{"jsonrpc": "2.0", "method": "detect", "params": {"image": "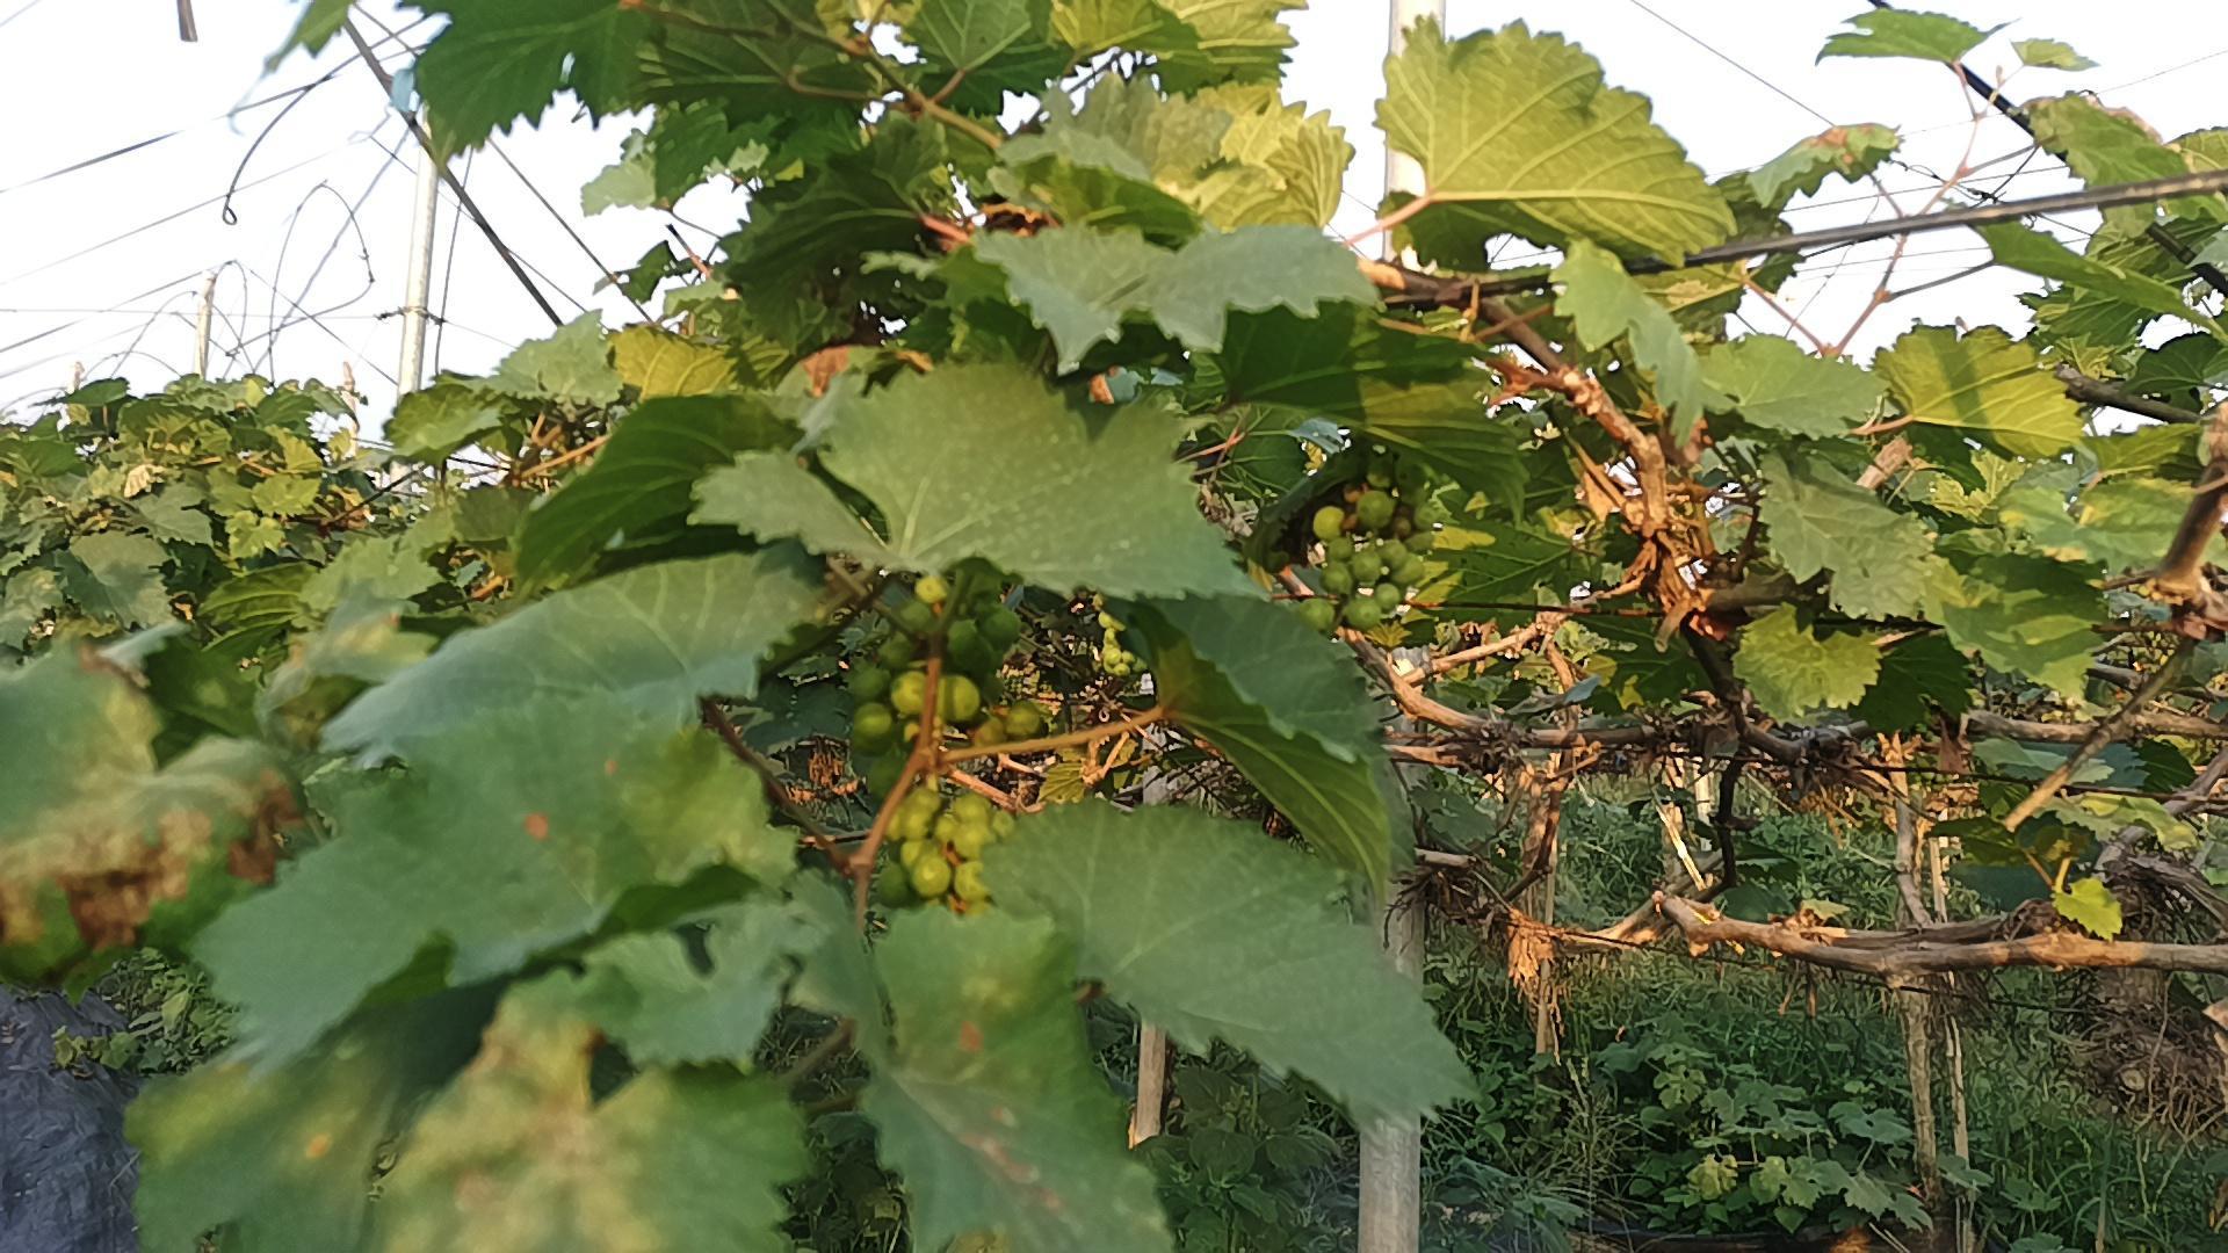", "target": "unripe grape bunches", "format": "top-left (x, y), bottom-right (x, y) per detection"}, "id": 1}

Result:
top-left (849, 559), bottom-right (1046, 918)
top-left (1091, 593), bottom-right (1149, 676)
top-left (1293, 458), bottom-right (1435, 645)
